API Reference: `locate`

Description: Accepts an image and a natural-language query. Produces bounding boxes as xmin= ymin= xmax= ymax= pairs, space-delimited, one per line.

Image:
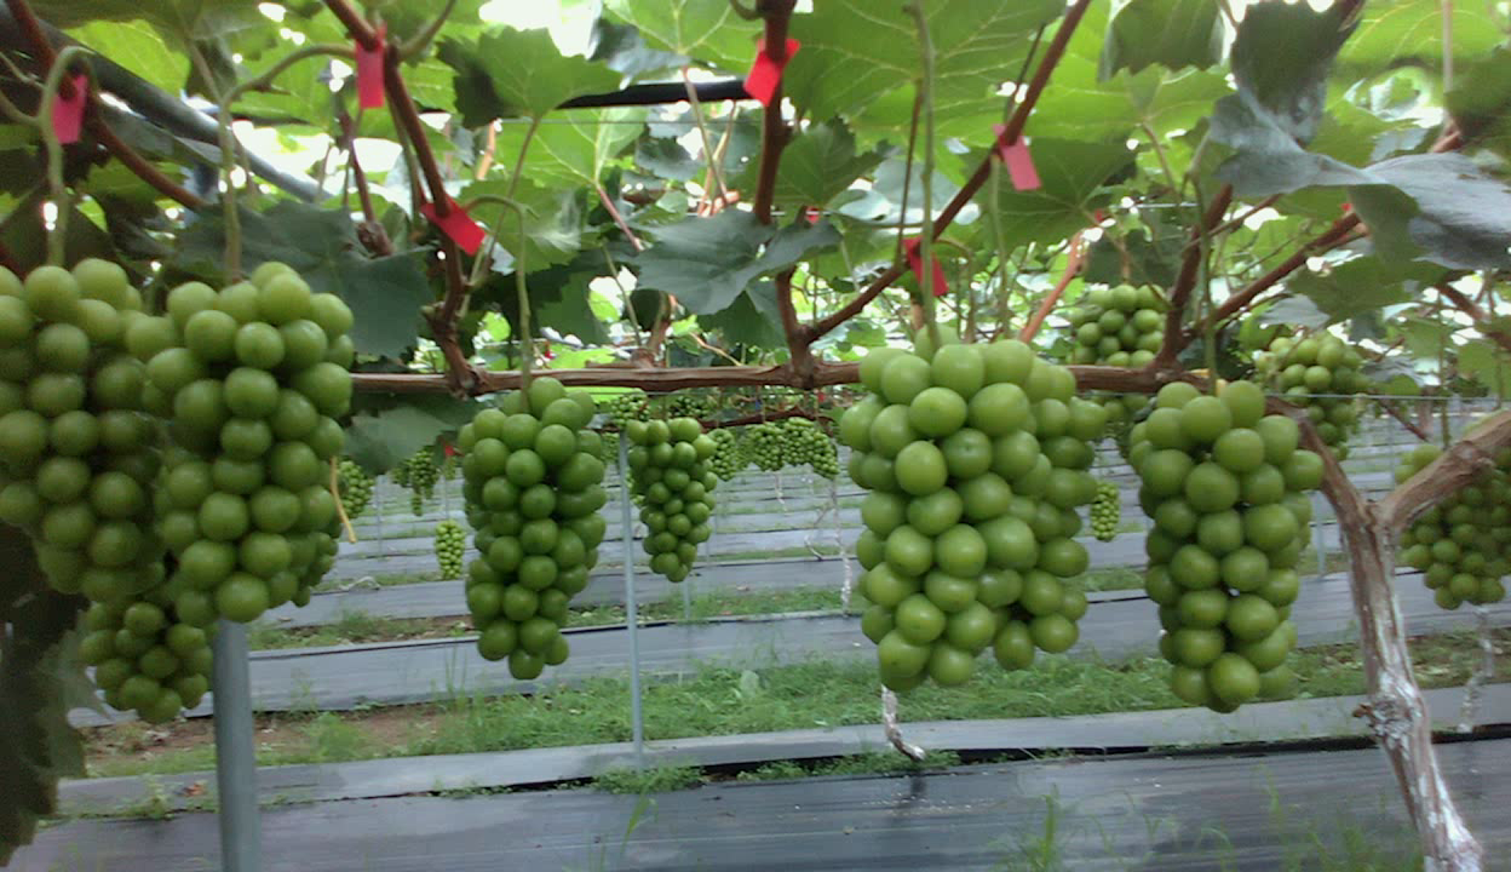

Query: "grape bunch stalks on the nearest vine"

xmin=41 ymin=45 xmax=99 ymax=266
xmin=217 ymin=44 xmax=355 ymax=286
xmin=904 ymin=0 xmax=942 ymax=352
xmin=460 ymin=193 xmax=530 ymax=411
xmin=1190 ymin=132 xmax=1216 ymax=395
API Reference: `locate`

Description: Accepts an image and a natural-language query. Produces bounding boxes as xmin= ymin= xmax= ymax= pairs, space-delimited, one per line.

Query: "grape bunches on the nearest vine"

xmin=1139 ymin=381 xmax=1323 ymax=713
xmin=459 ymin=373 xmax=608 ymax=679
xmin=993 ymin=365 xmax=1111 ymax=669
xmin=125 ymin=263 xmax=357 ymax=627
xmin=1 ymin=257 xmax=168 ymax=601
xmin=840 ymin=327 xmax=1051 ymax=692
